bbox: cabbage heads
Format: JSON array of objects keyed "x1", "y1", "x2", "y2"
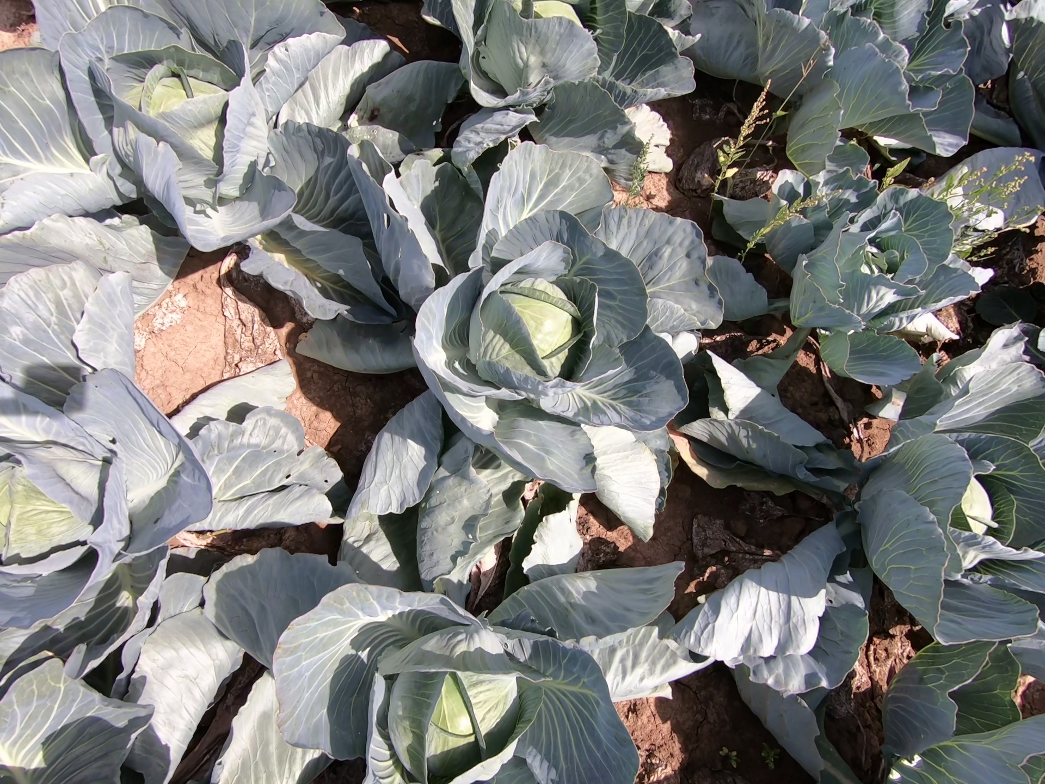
[
  {"x1": 813, "y1": 246, "x2": 894, "y2": 327},
  {"x1": 0, "y1": 443, "x2": 118, "y2": 576},
  {"x1": 472, "y1": 275, "x2": 576, "y2": 393},
  {"x1": 491, "y1": 1, "x2": 589, "y2": 93},
  {"x1": 387, "y1": 633, "x2": 522, "y2": 782},
  {"x1": 912, "y1": 459, "x2": 994, "y2": 540},
  {"x1": 113, "y1": 63, "x2": 254, "y2": 199}
]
